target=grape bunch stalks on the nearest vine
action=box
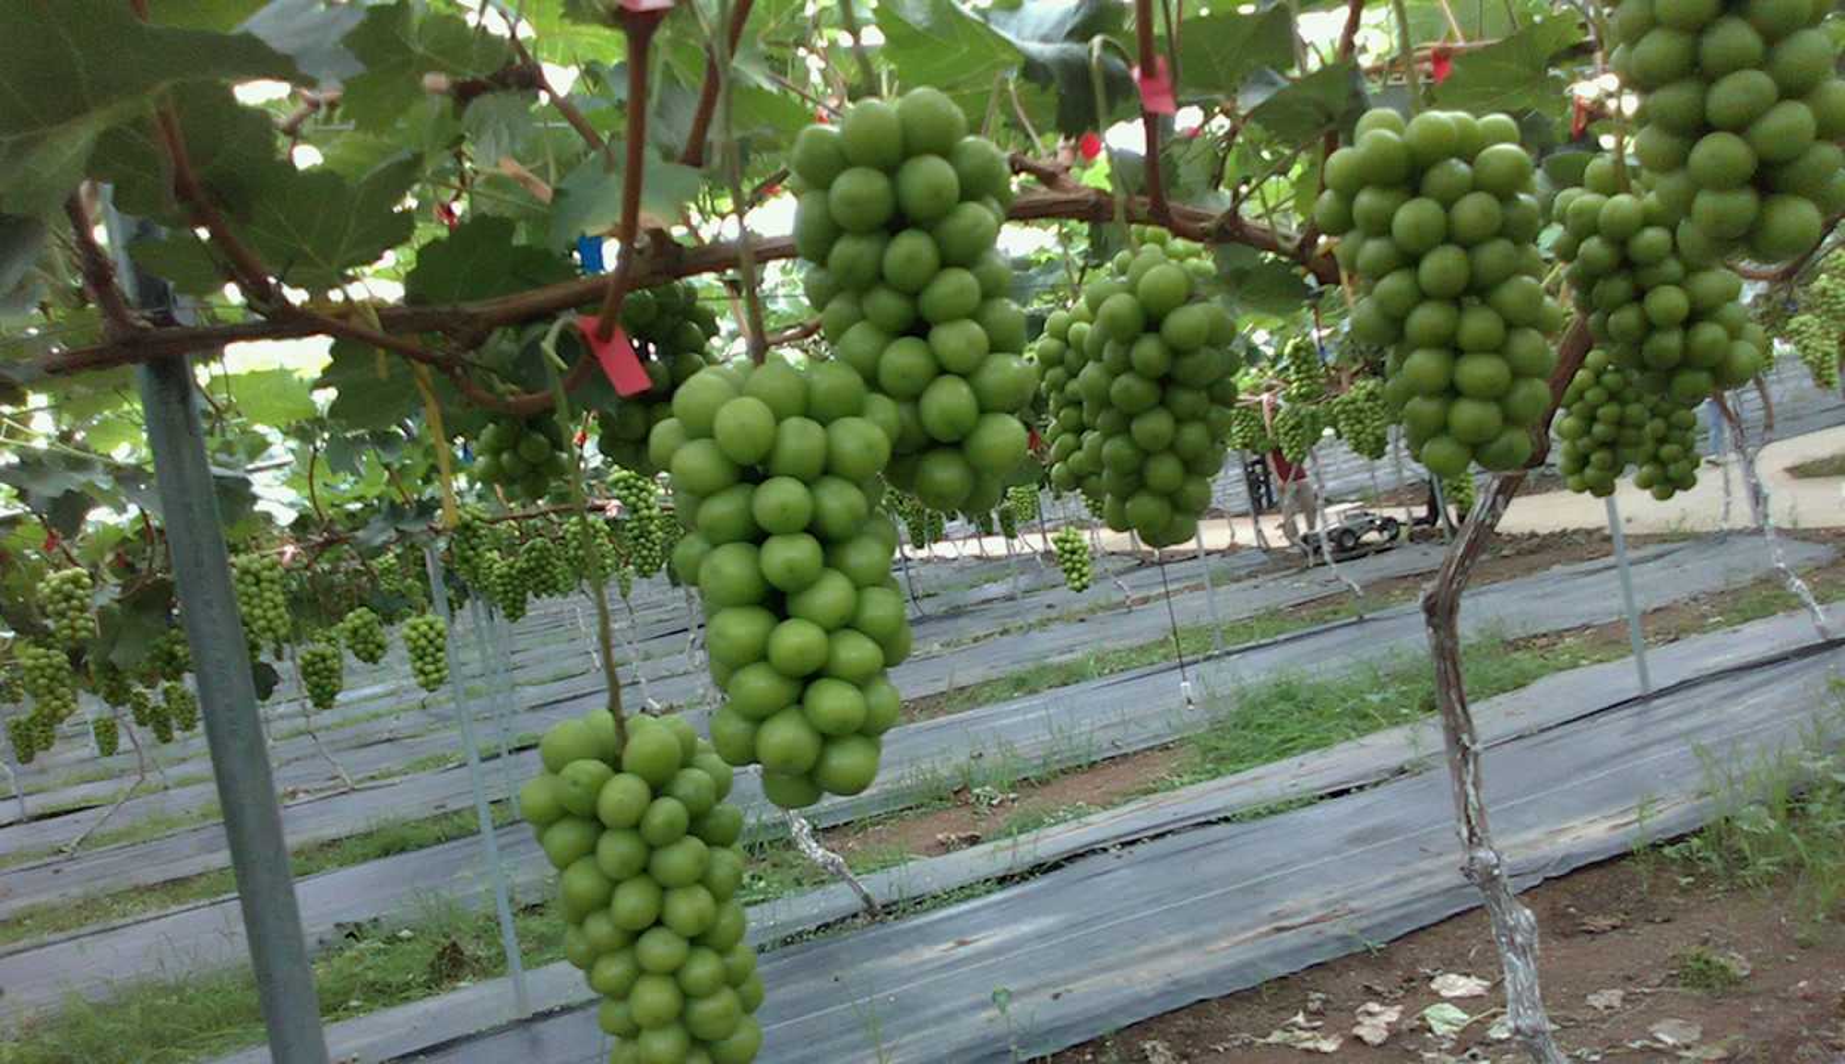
[1393,0,1425,114]
[1088,37,1138,254]
[716,1,769,364]
[1613,102,1631,191]
[838,0,877,93]
[541,318,628,770]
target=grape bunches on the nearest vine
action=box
[789,87,1035,516]
[646,353,911,813]
[1078,244,1242,547]
[1313,108,1560,479]
[520,712,763,1063]
[1552,158,1768,405]
[1607,0,1842,263]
